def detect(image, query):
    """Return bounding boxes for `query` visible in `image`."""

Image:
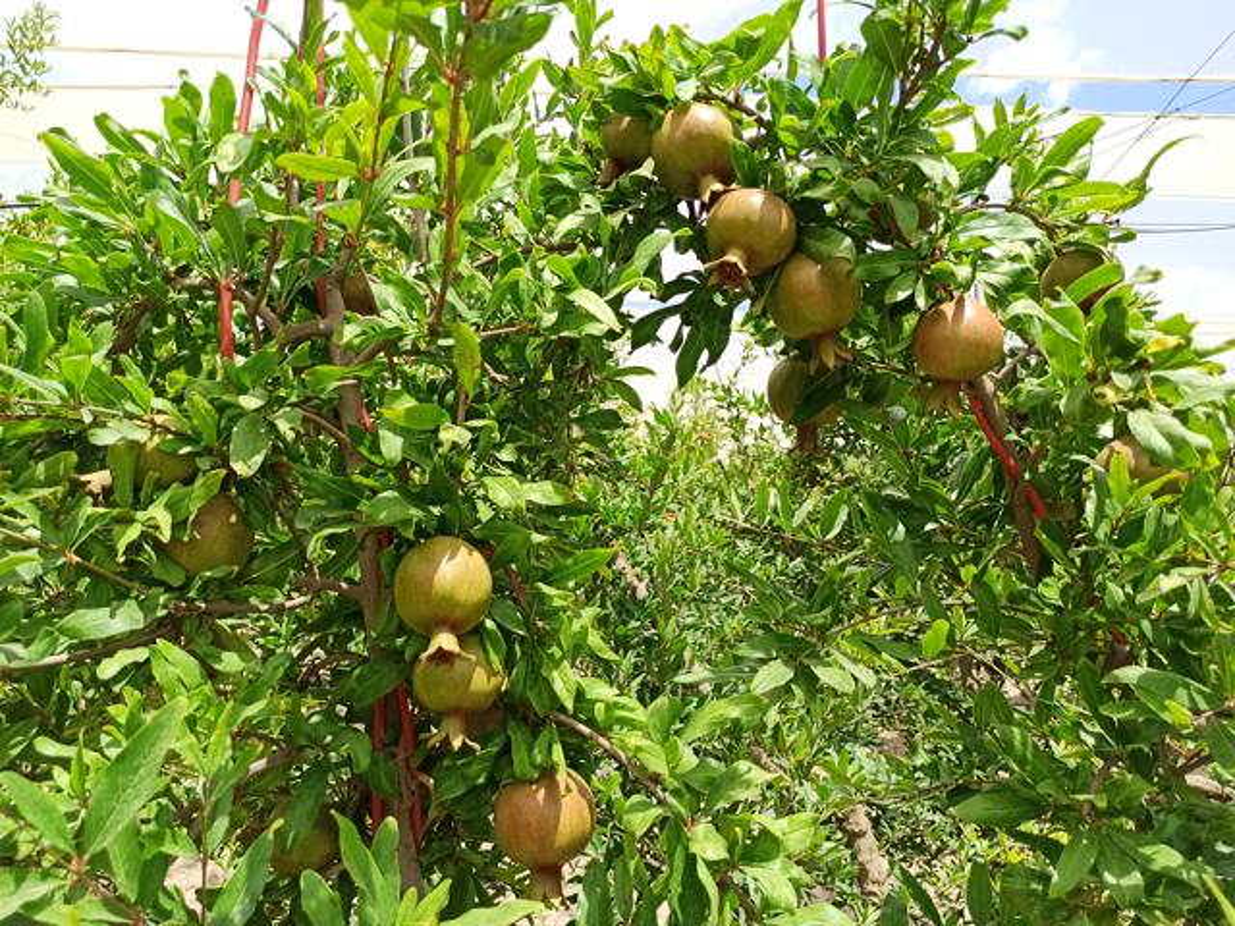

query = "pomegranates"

[494,768,596,901]
[342,276,376,311]
[702,187,799,297]
[411,635,506,752]
[166,494,251,579]
[1038,251,1115,316]
[913,297,1005,421]
[268,803,334,876]
[768,351,837,459]
[766,253,859,376]
[648,100,745,220]
[139,413,195,486]
[594,116,650,185]
[1094,432,1173,484]
[392,536,492,677]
